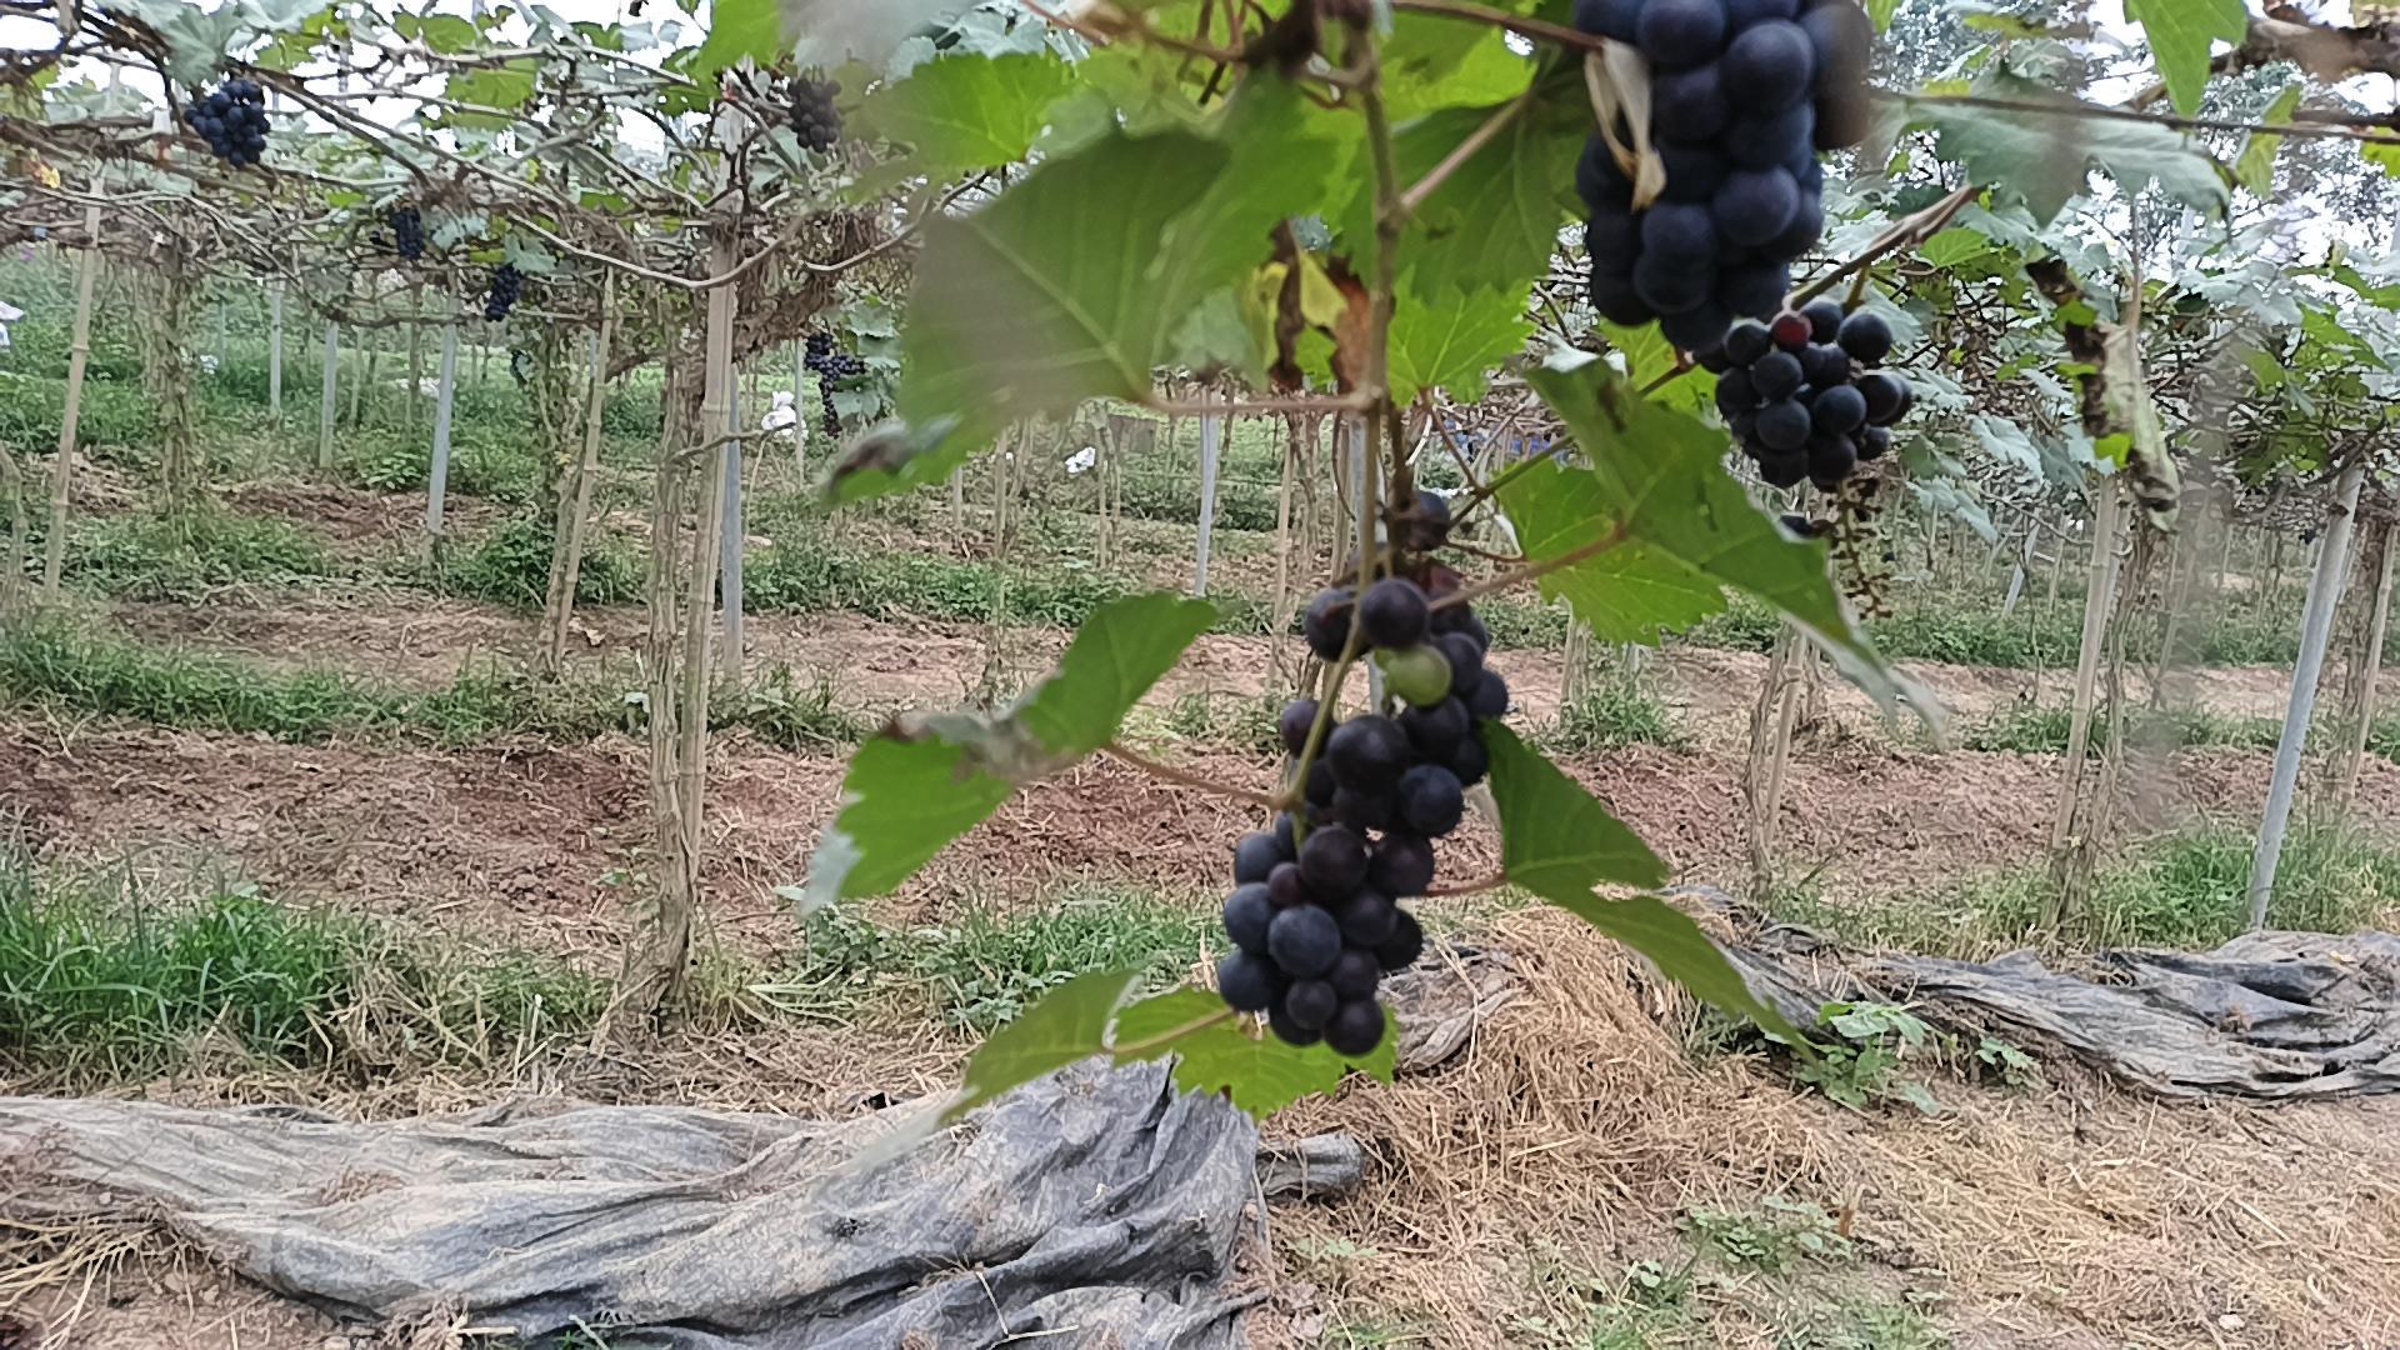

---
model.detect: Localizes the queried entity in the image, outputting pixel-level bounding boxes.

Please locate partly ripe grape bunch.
[1216,489,1507,1055]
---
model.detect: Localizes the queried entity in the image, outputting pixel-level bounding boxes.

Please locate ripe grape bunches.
[381,196,432,264]
[785,69,842,154]
[481,260,530,322]
[1700,297,1911,491]
[1575,0,1870,360]
[802,327,885,439]
[185,72,270,167]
